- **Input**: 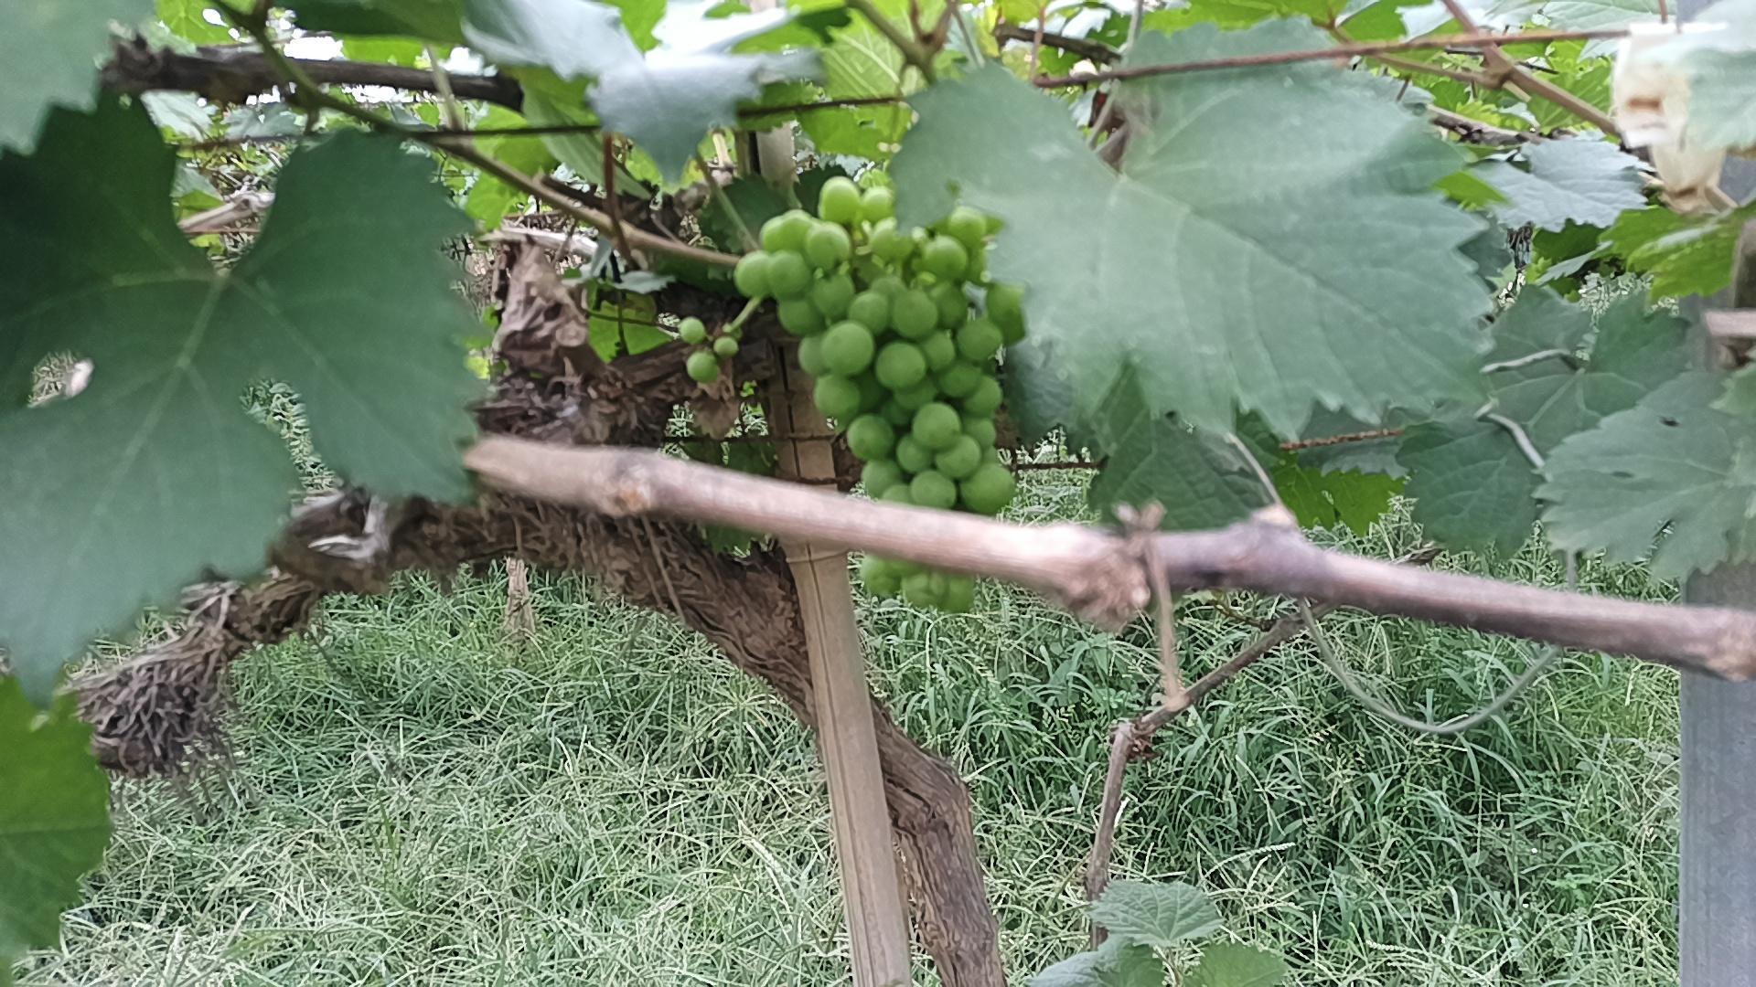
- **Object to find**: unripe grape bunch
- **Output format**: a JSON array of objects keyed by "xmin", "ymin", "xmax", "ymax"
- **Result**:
[{"xmin": 681, "ymin": 177, "xmax": 1024, "ymax": 612}]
